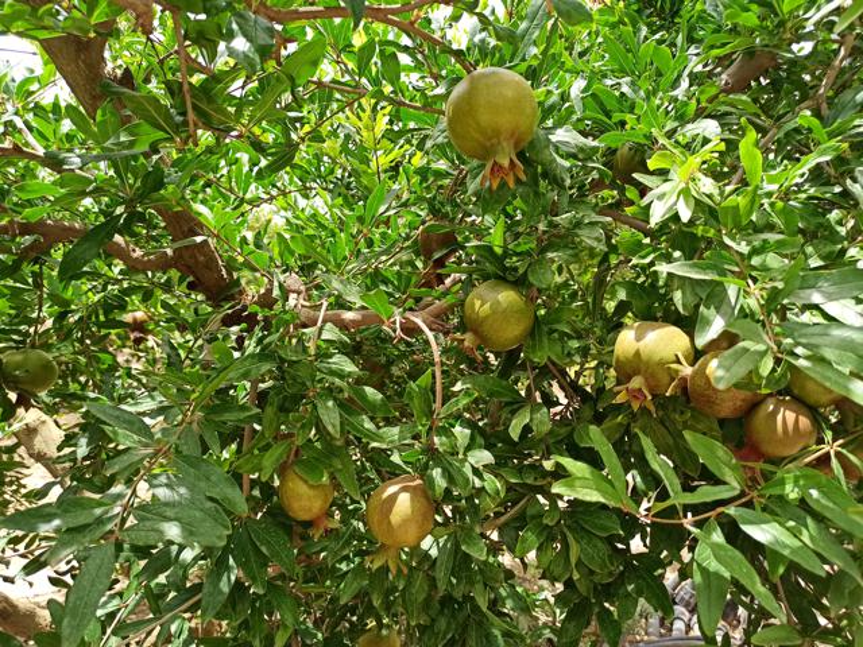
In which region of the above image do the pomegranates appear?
[364,473,436,577]
[276,468,344,543]
[0,348,59,412]
[446,66,539,191]
[725,395,819,481]
[417,232,456,286]
[609,321,696,418]
[789,371,845,406]
[661,349,769,421]
[450,279,535,364]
